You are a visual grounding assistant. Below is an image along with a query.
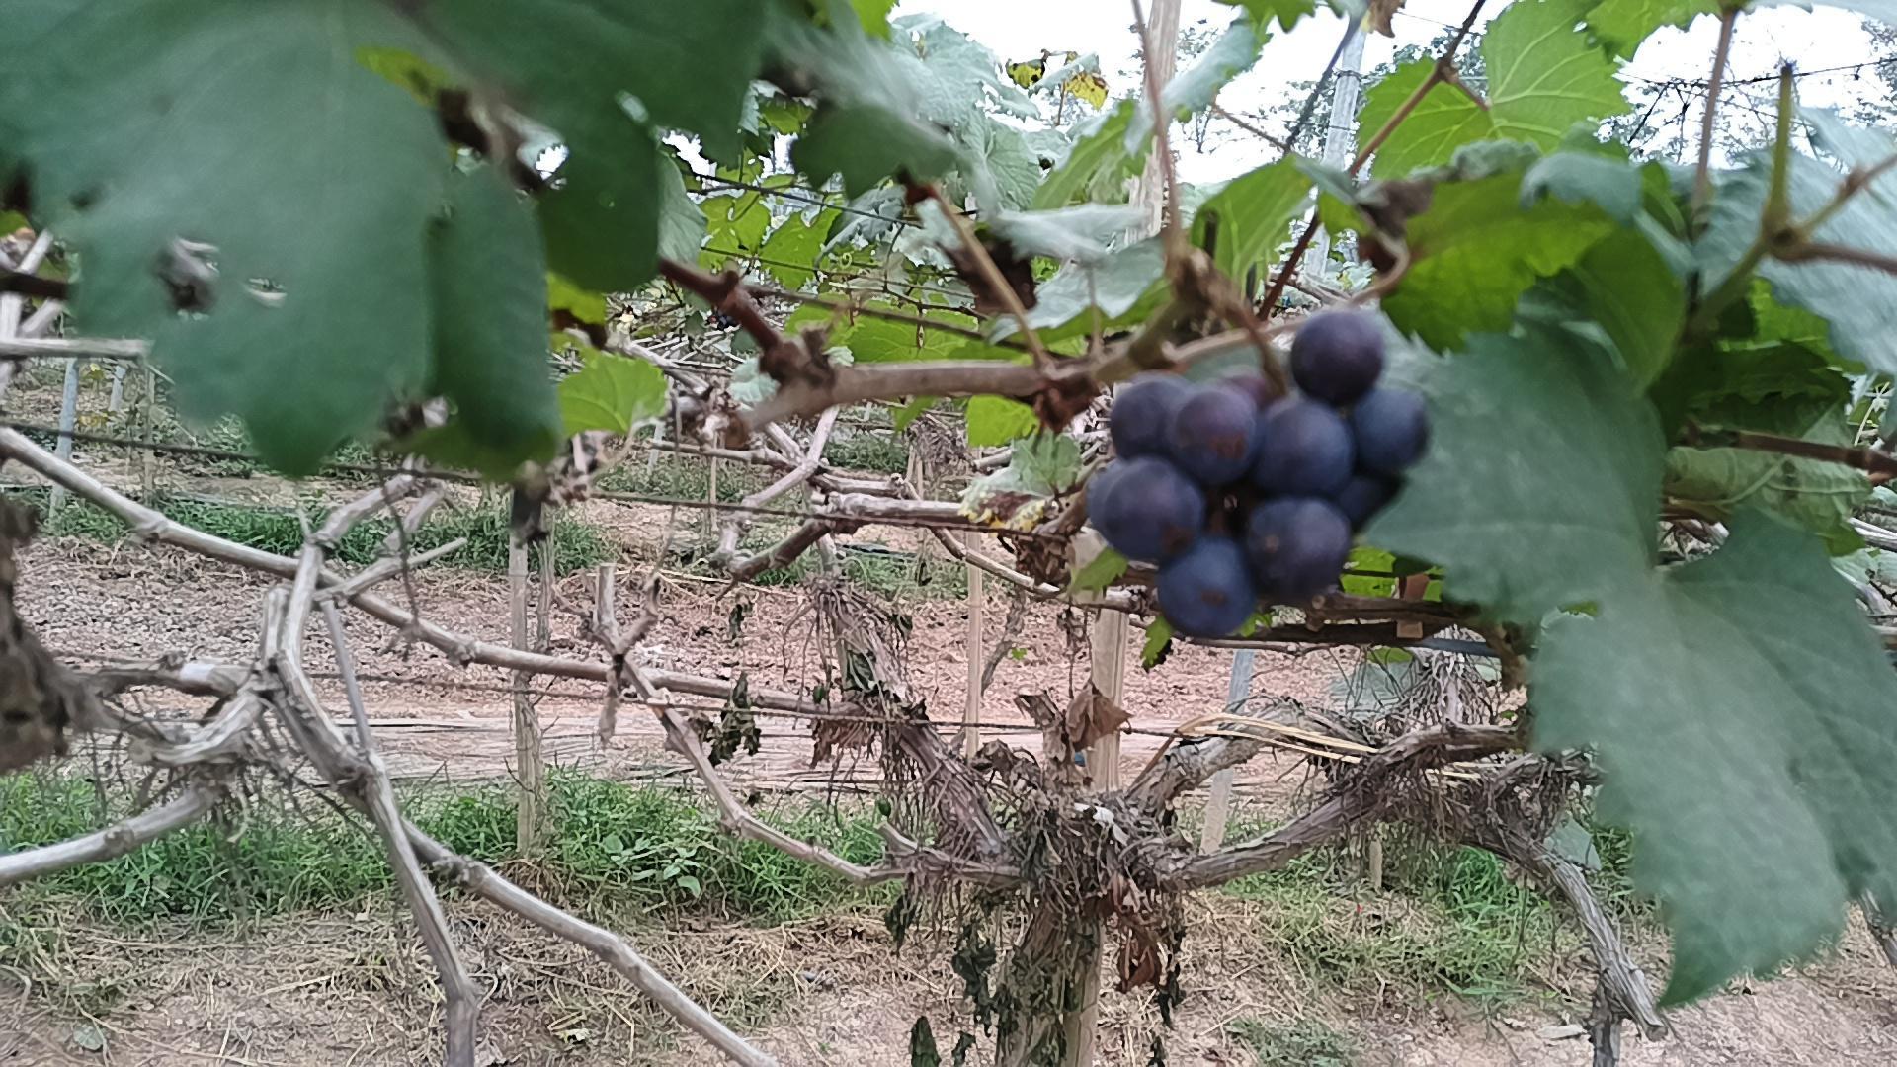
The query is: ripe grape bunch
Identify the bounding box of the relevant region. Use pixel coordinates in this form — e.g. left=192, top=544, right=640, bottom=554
left=1086, top=311, right=1429, bottom=635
